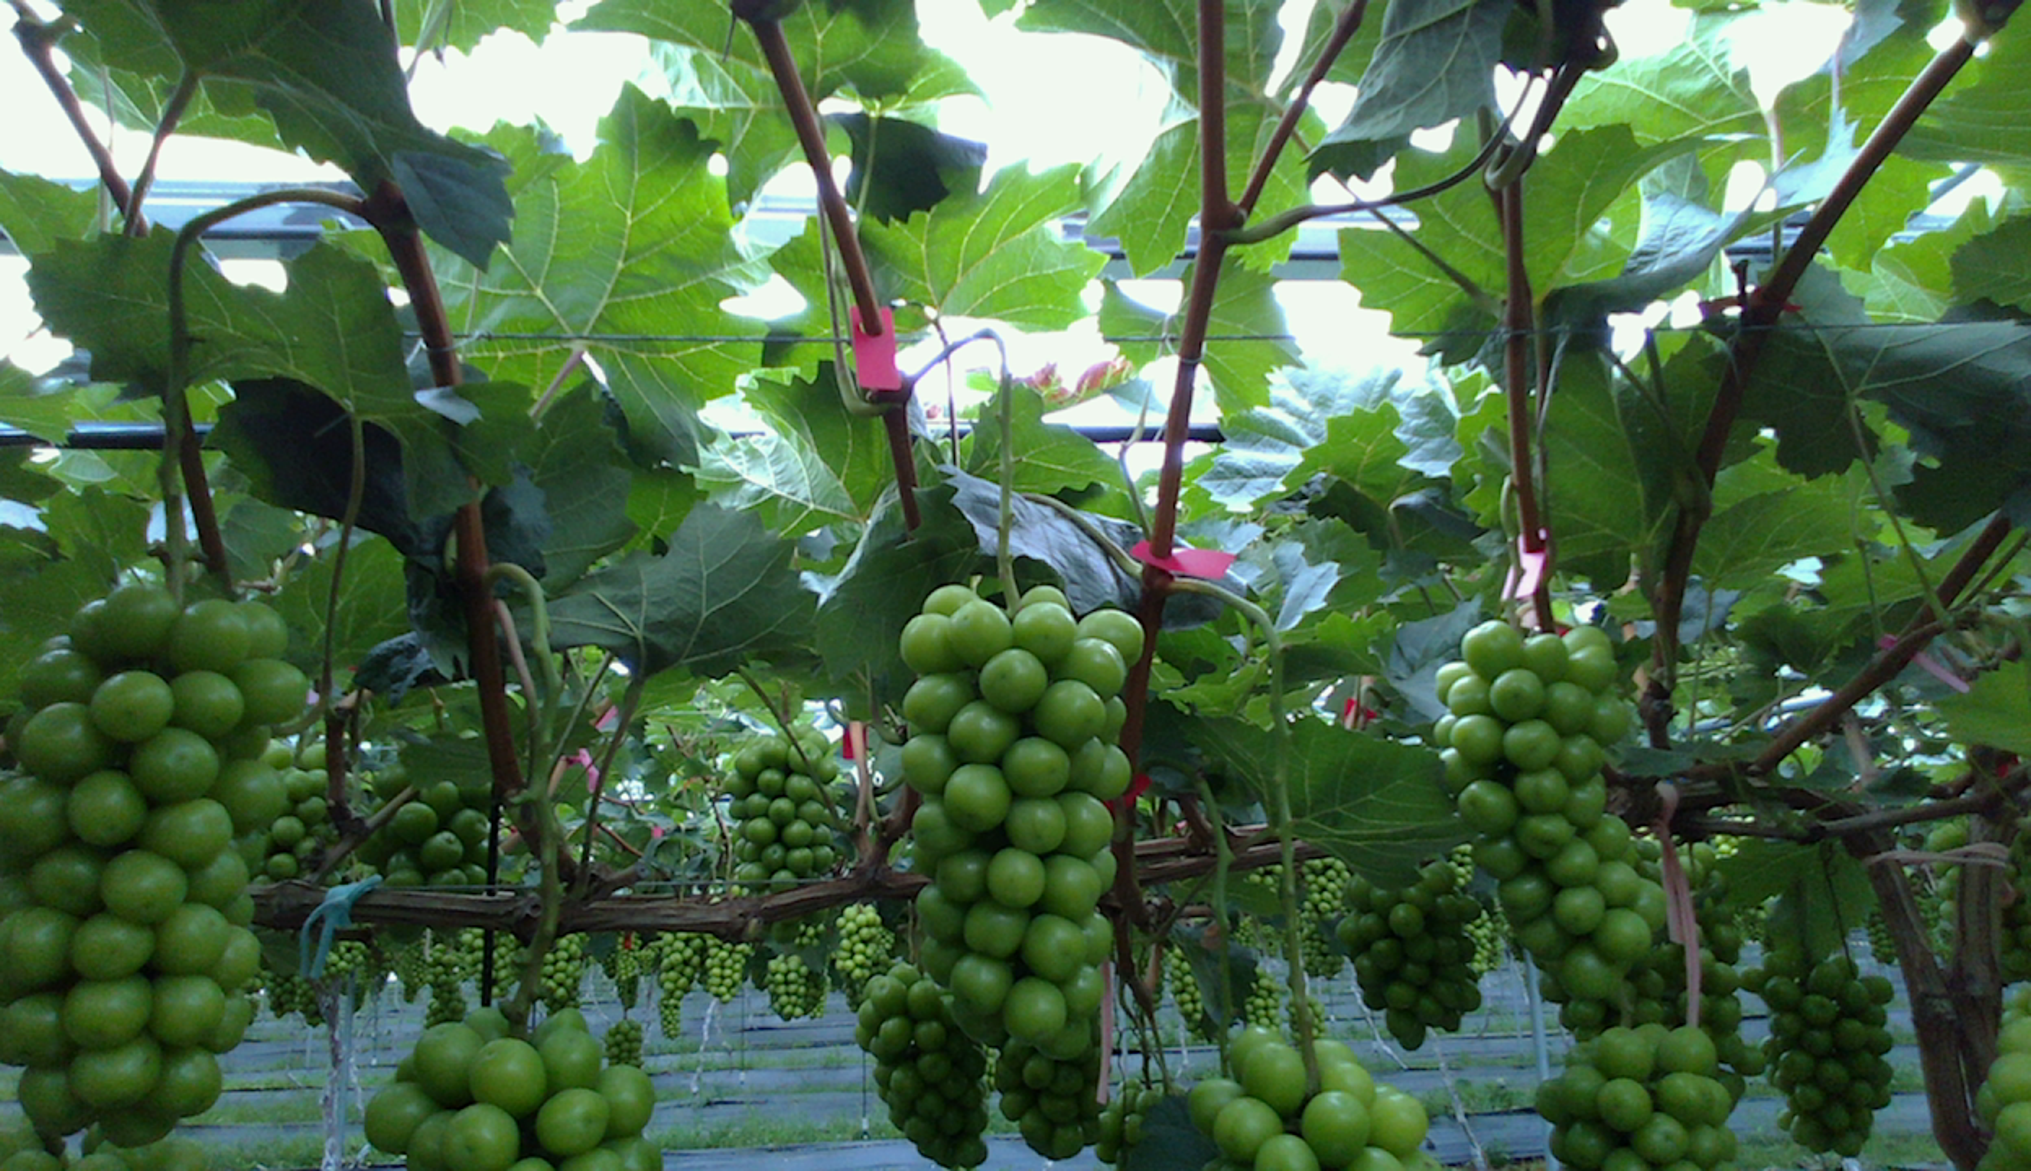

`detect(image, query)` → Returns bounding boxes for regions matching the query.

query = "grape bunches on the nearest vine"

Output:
[897,584,1142,1060]
[365,1008,664,1169]
[1432,618,1666,999]
[2,584,308,1148]
[1535,1023,1740,1169]
[1185,1025,1442,1169]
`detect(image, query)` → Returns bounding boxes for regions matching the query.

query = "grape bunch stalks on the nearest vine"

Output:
[910,327,1020,621]
[1500,475,1527,638]
[480,563,570,1039]
[1168,576,1321,1101]
[146,189,369,605]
